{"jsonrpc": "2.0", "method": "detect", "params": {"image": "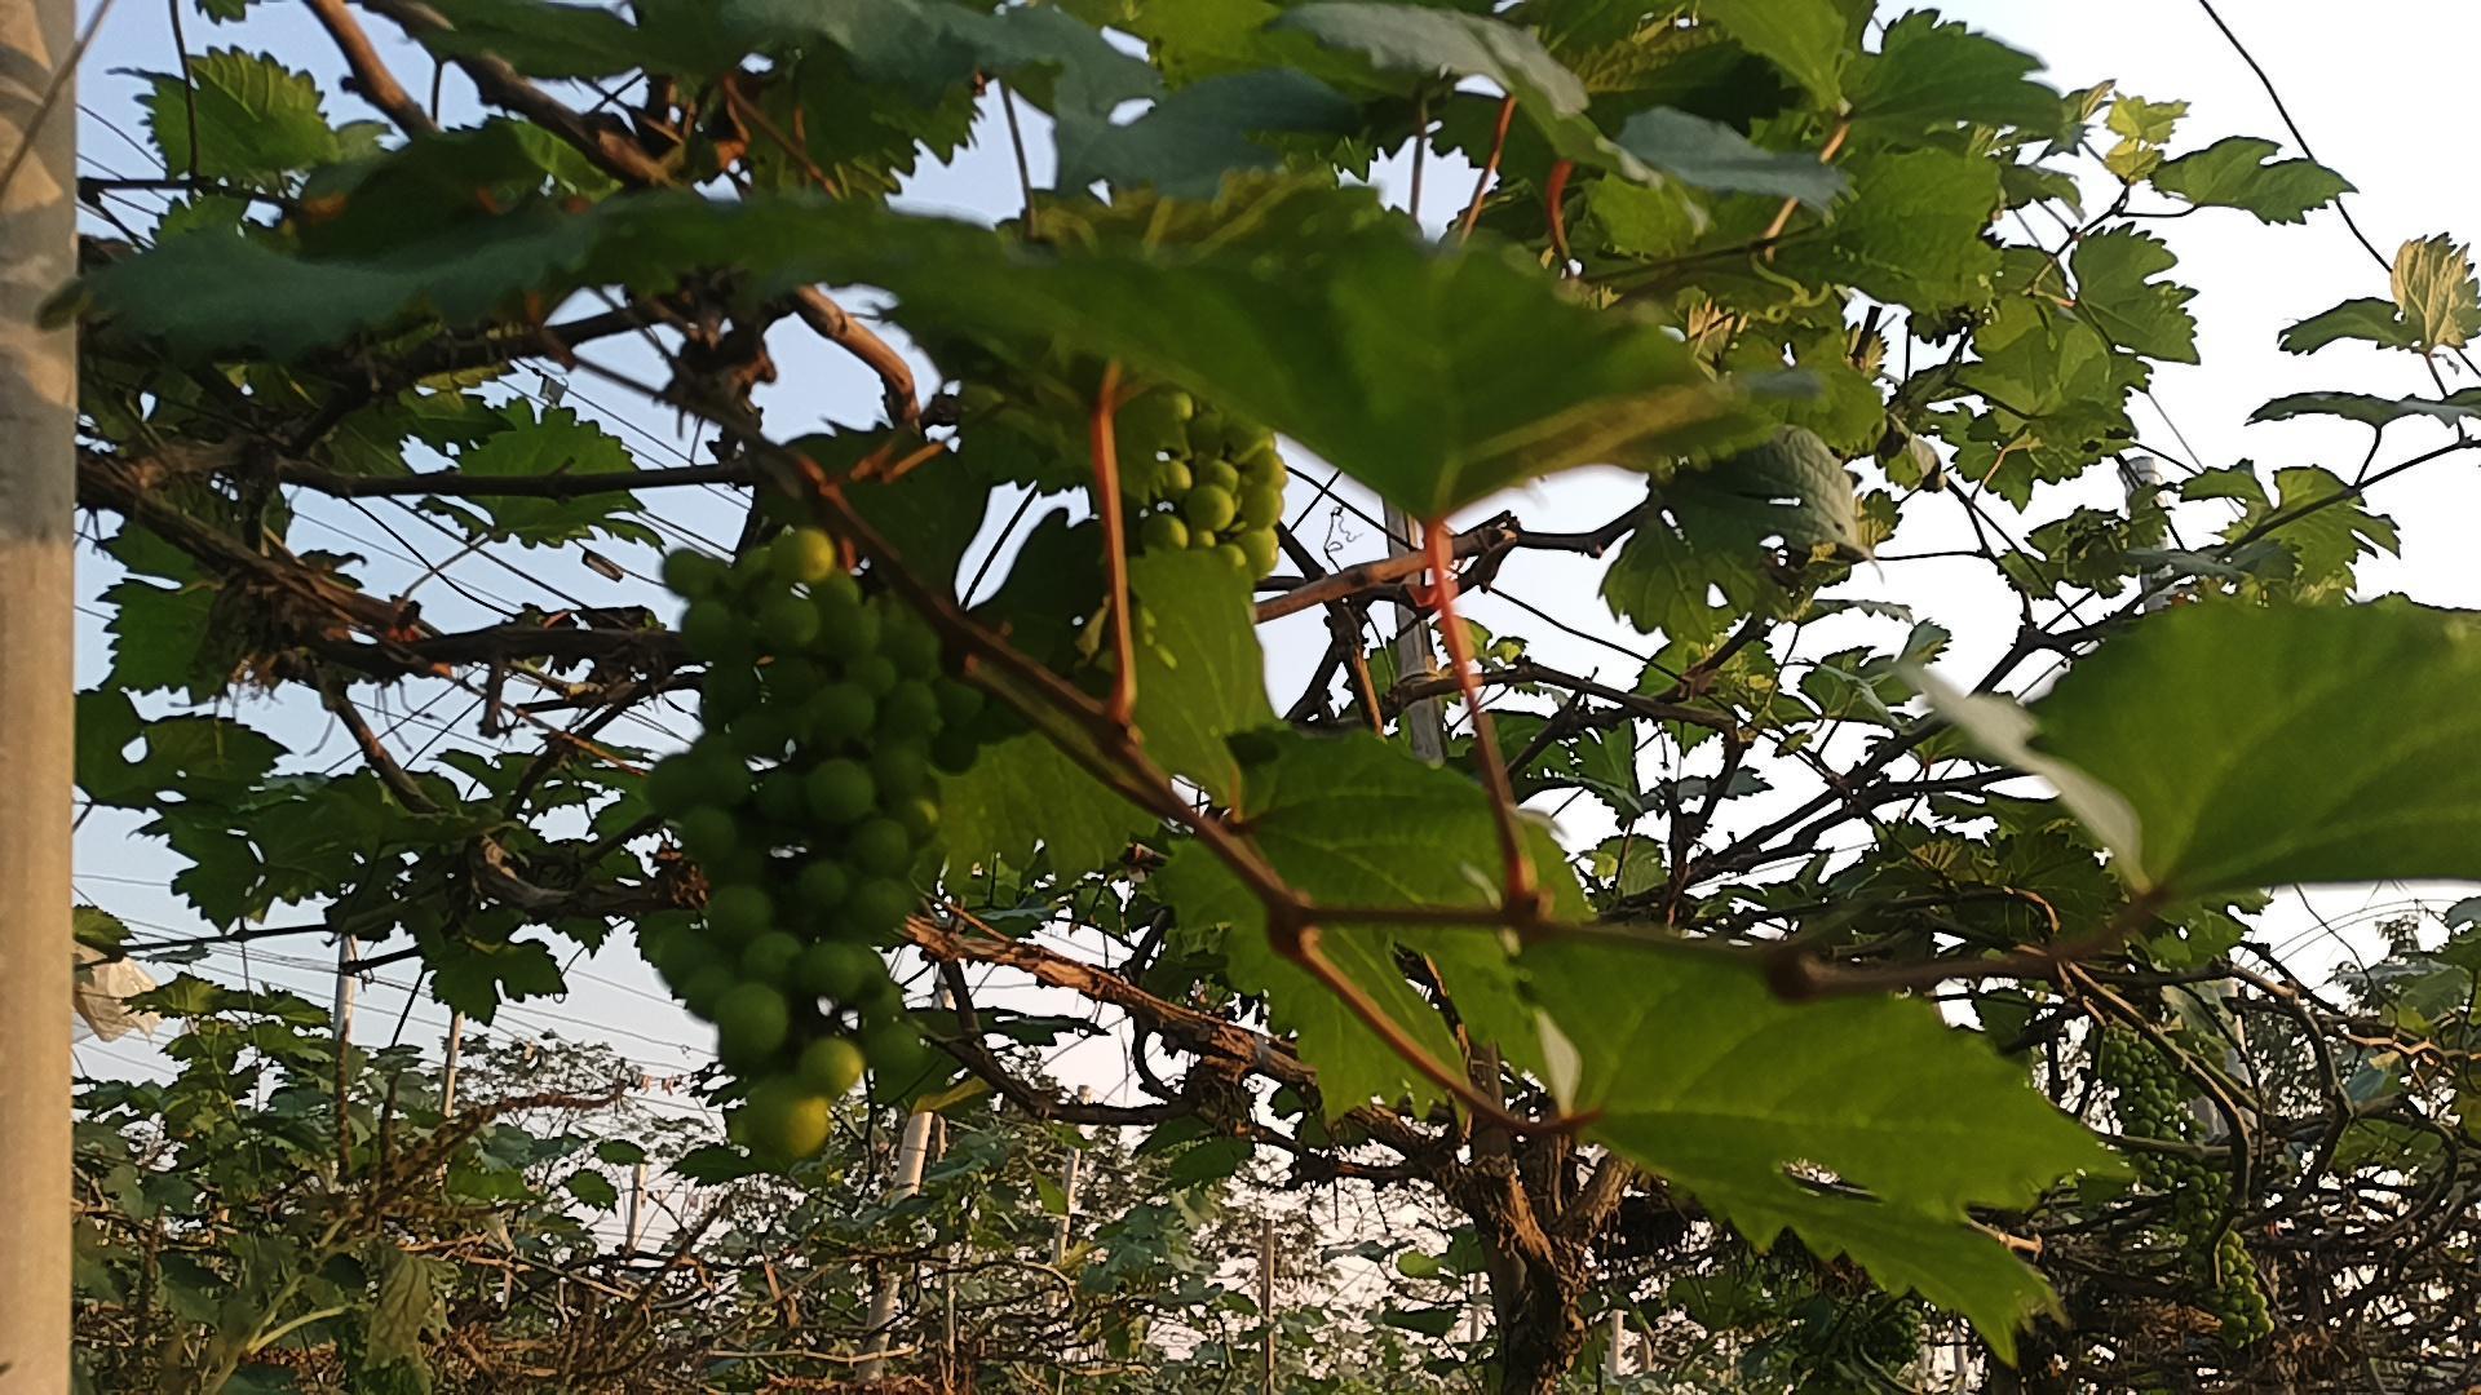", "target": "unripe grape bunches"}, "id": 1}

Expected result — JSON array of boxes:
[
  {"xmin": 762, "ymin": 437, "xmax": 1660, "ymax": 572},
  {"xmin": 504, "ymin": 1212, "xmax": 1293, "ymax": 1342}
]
[
  {"xmin": 2170, "ymin": 1164, "xmax": 2273, "ymax": 1347},
  {"xmin": 2093, "ymin": 1028, "xmax": 2201, "ymax": 1190},
  {"xmin": 642, "ymin": 530, "xmax": 954, "ymax": 1166},
  {"xmin": 1119, "ymin": 389, "xmax": 1284, "ymax": 579}
]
